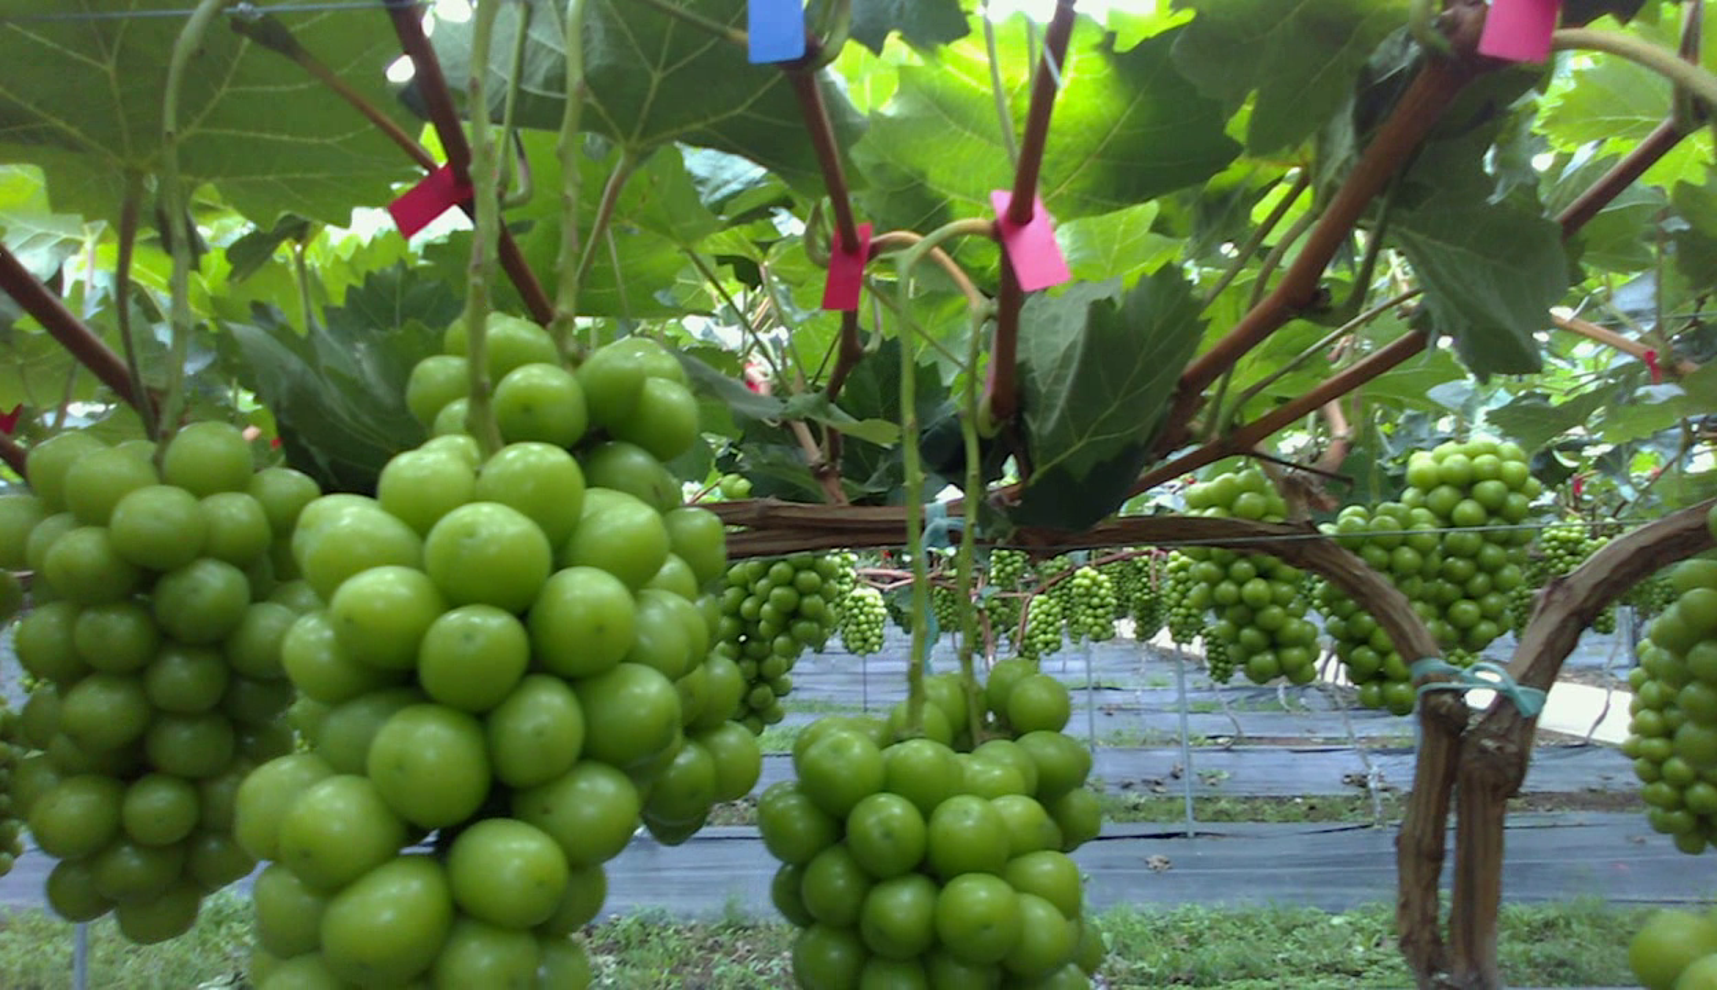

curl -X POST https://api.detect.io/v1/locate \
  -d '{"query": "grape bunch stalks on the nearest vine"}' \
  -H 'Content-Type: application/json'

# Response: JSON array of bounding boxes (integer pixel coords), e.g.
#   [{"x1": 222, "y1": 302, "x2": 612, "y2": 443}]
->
[
  {"x1": 878, "y1": 216, "x2": 980, "y2": 737},
  {"x1": 550, "y1": 0, "x2": 582, "y2": 366},
  {"x1": 464, "y1": 0, "x2": 499, "y2": 466},
  {"x1": 154, "y1": 0, "x2": 223, "y2": 467},
  {"x1": 934, "y1": 247, "x2": 993, "y2": 738}
]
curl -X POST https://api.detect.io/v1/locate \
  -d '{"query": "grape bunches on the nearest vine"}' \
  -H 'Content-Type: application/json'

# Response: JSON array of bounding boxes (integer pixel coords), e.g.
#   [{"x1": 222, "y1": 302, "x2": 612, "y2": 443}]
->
[
  {"x1": 757, "y1": 711, "x2": 1103, "y2": 989},
  {"x1": 409, "y1": 312, "x2": 759, "y2": 847},
  {"x1": 927, "y1": 659, "x2": 1098, "y2": 851},
  {"x1": 228, "y1": 436, "x2": 711, "y2": 987},
  {"x1": 0, "y1": 421, "x2": 315, "y2": 943}
]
